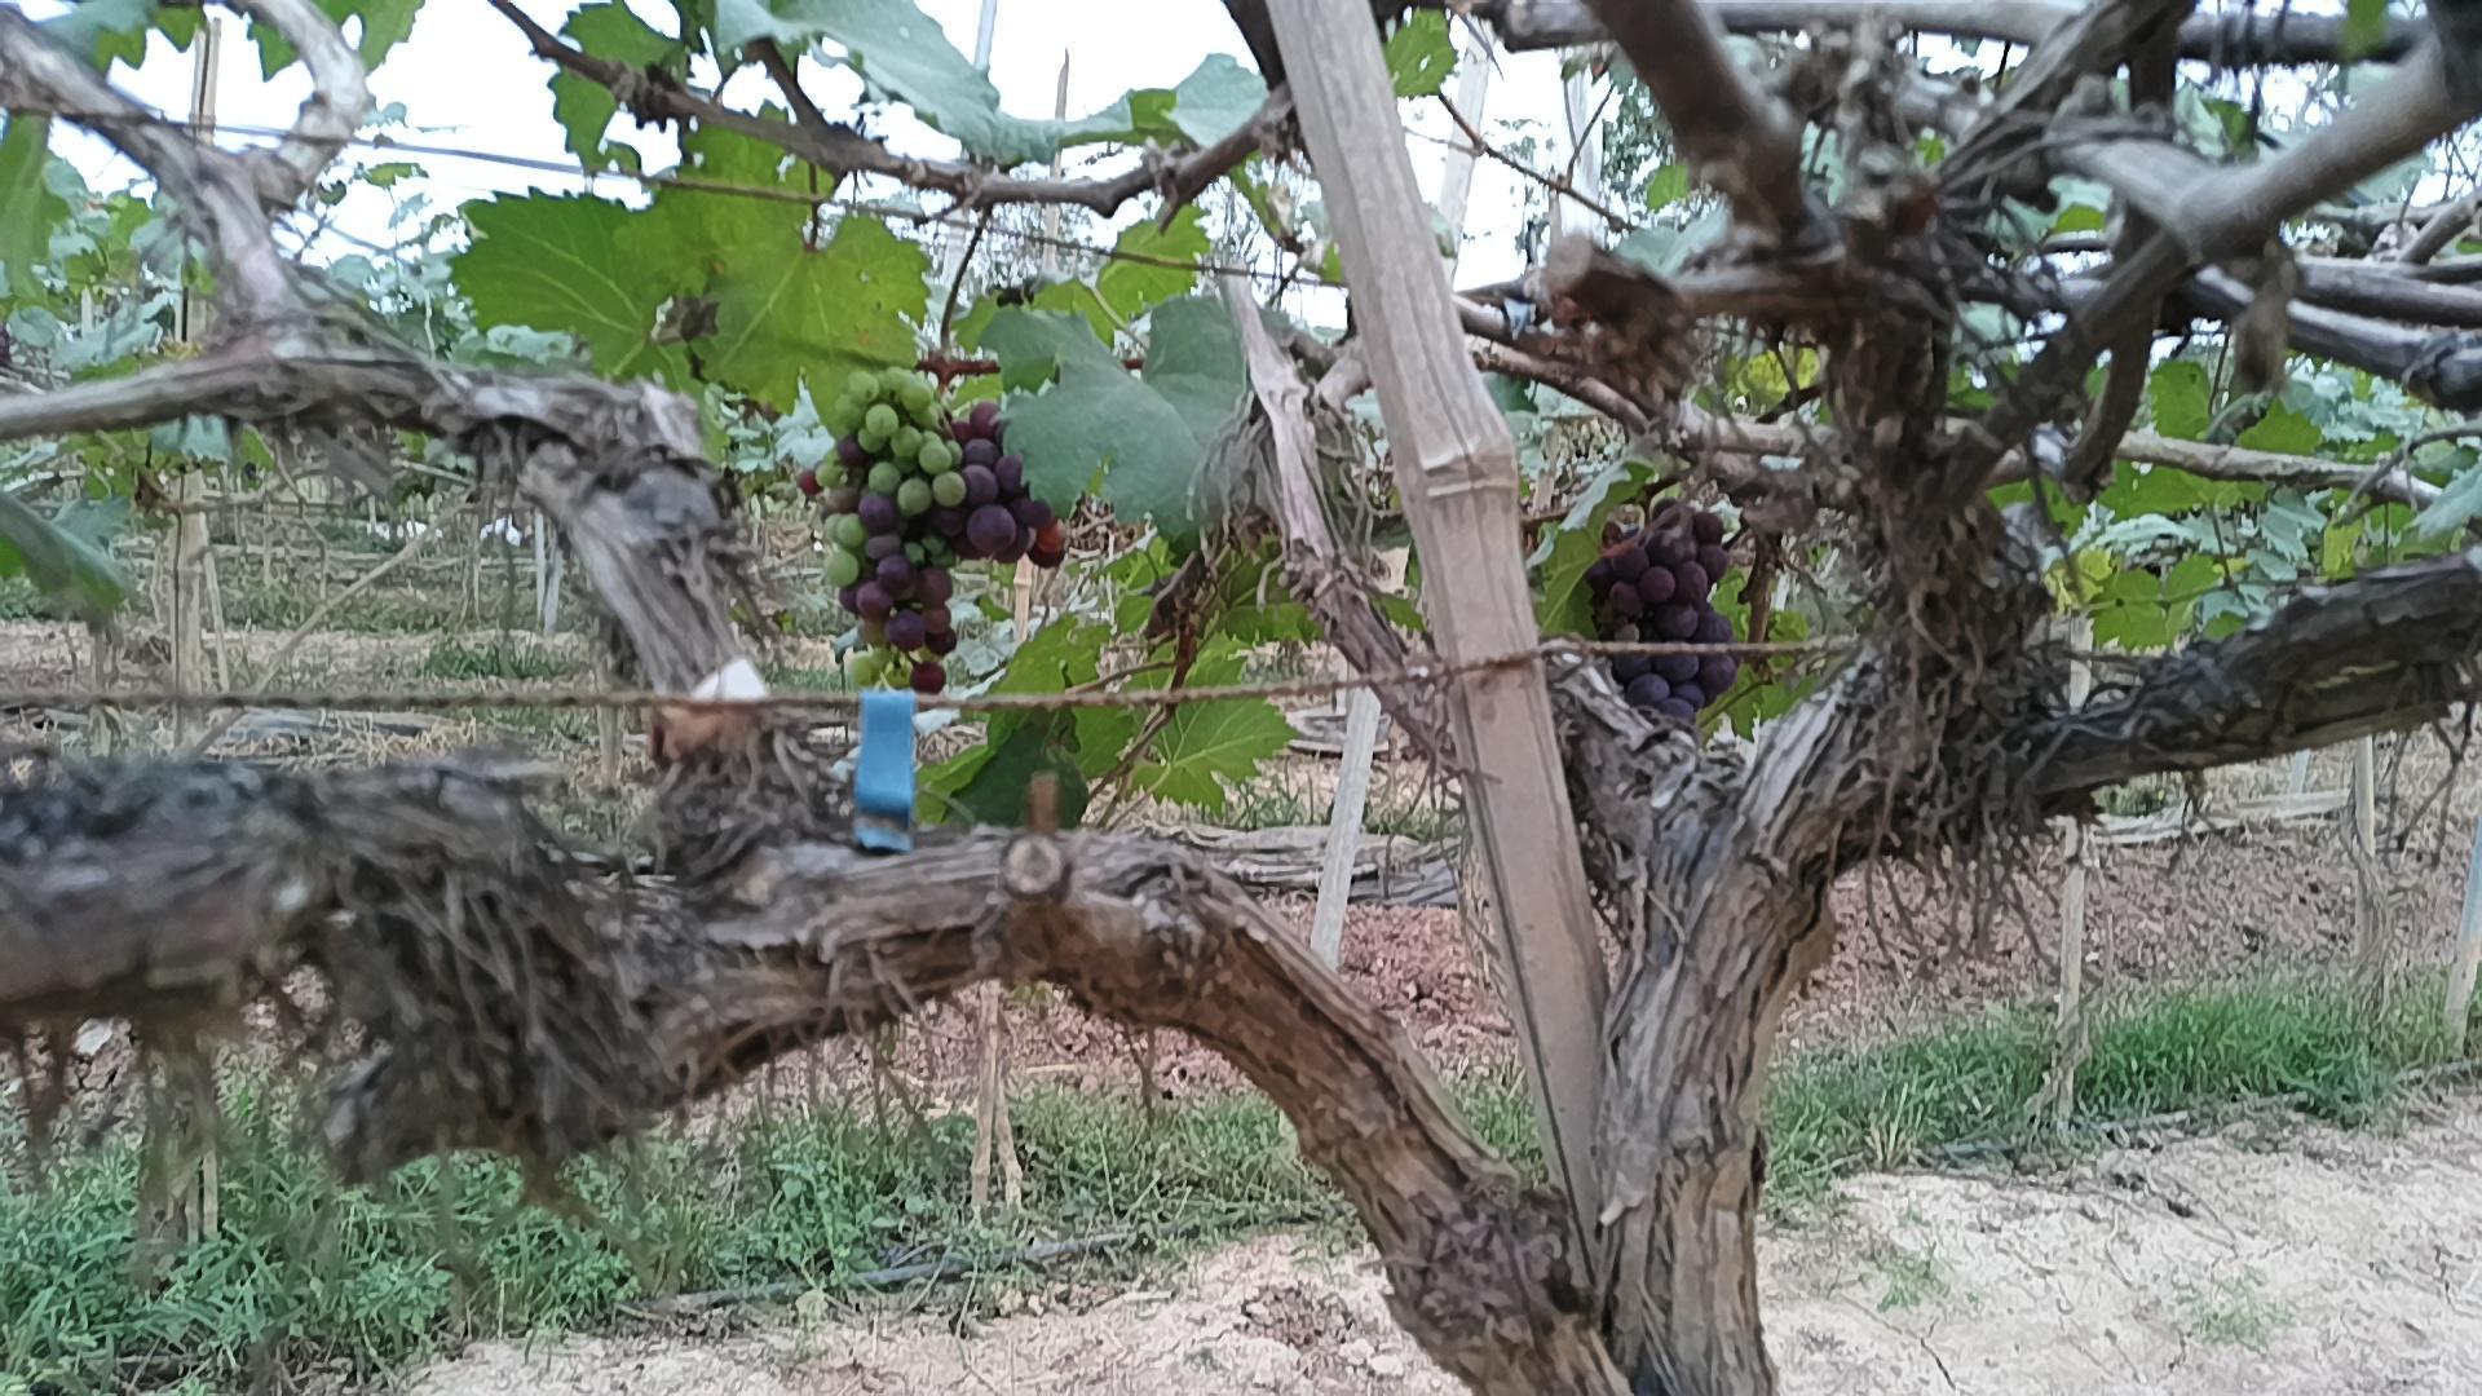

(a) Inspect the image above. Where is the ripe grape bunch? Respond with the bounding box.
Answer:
[1584,498,1740,726]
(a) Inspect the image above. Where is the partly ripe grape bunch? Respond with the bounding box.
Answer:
[798,367,1065,694]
